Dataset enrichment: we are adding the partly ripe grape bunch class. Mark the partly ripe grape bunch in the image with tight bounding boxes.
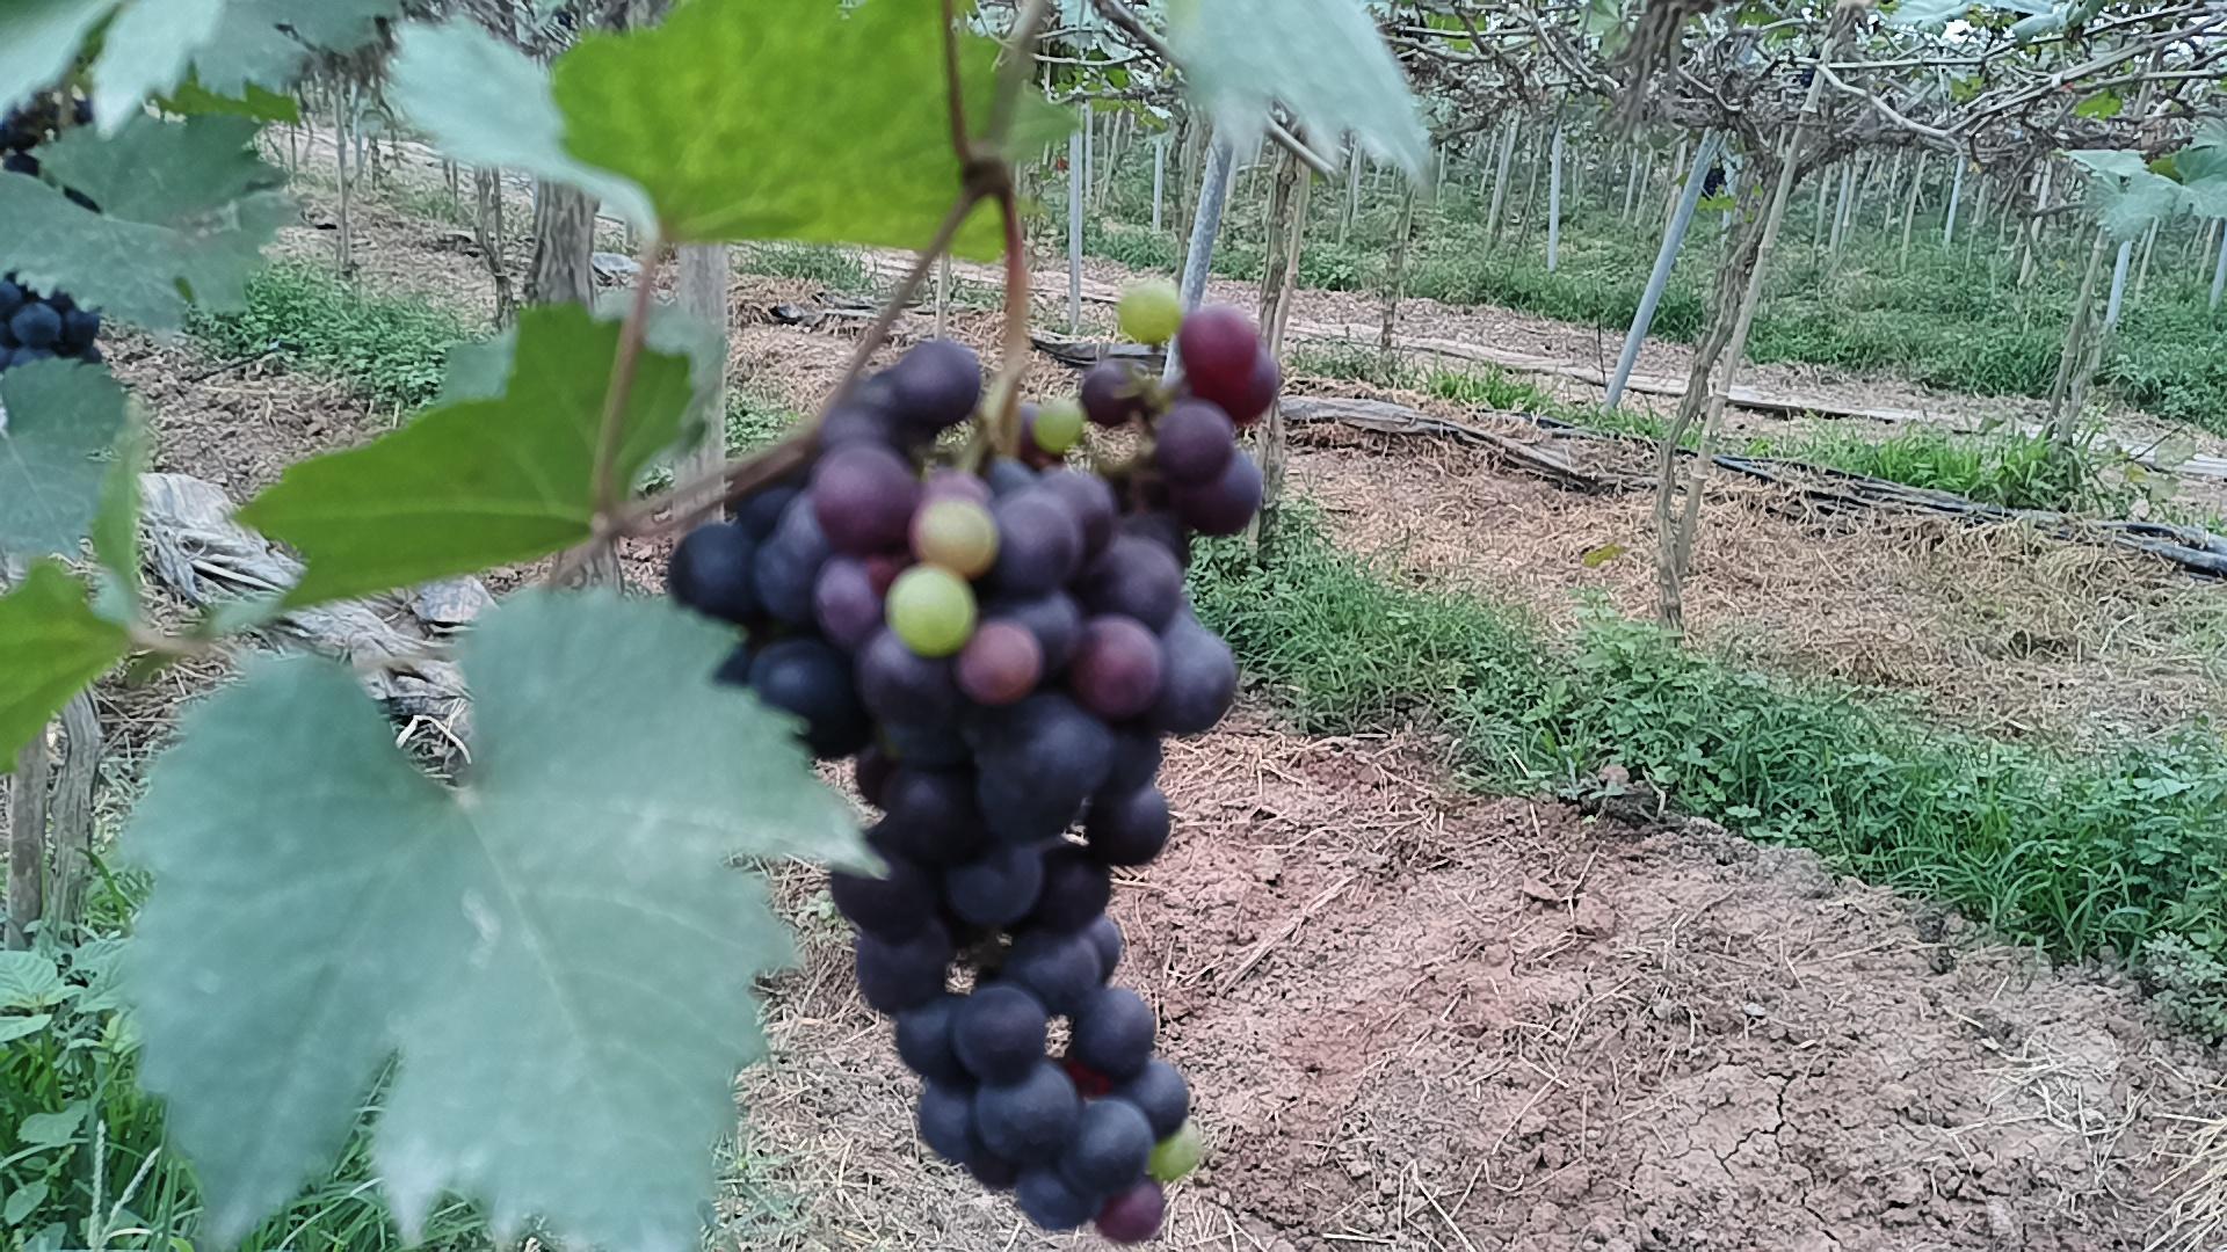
[669,292,1275,1243]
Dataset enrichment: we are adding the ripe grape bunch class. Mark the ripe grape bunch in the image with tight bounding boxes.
[0,83,110,381]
